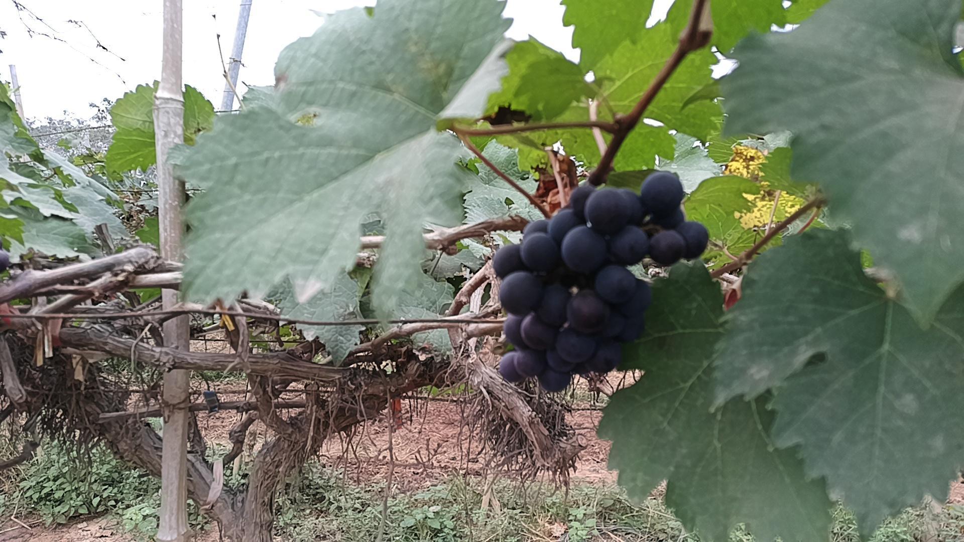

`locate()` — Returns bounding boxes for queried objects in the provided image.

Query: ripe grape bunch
[494,171,708,391]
